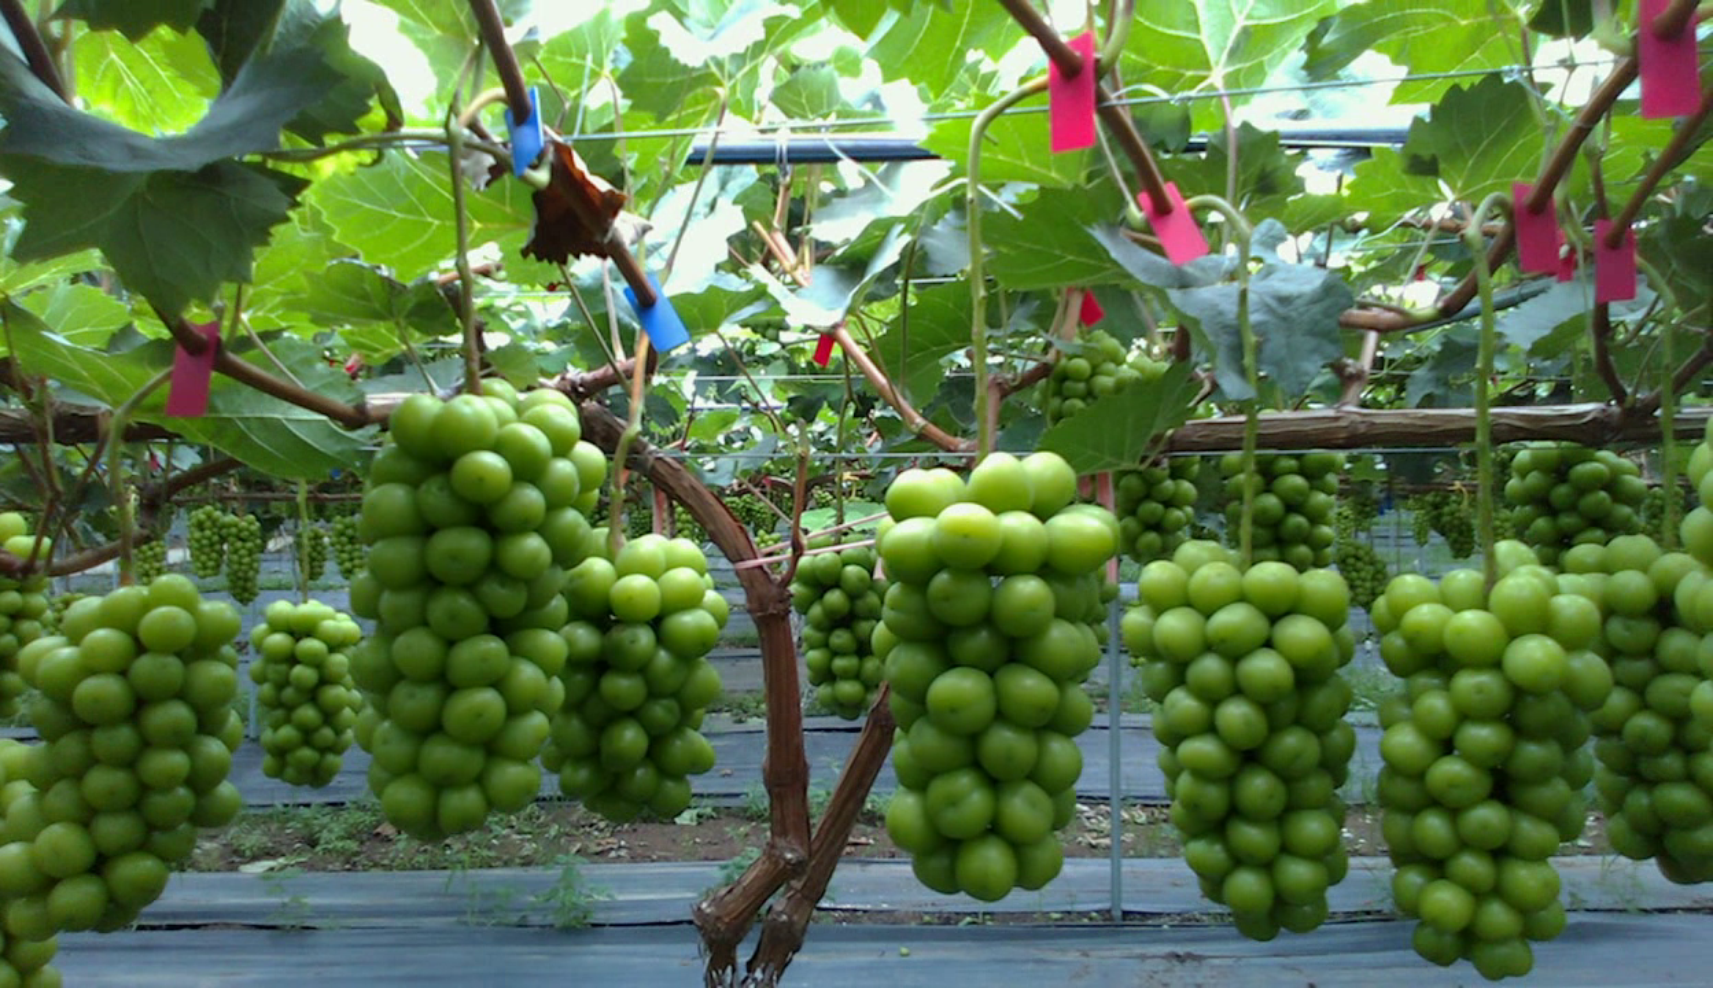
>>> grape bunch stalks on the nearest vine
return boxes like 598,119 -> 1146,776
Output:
447,88 -> 506,395
607,328 -> 648,563
1635,254 -> 1677,553
106,365 -> 172,585
1185,193 -> 1264,574
968,74 -> 1047,465
1466,191 -> 1510,611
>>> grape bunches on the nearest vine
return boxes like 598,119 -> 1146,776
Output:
1565,532 -> 1712,885
0,738 -> 59,987
347,377 -> 607,843
0,574 -> 242,943
541,527 -> 729,825
870,450 -> 1120,902
1676,414 -> 1712,730
1370,539 -> 1613,981
1120,538 -> 1355,940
